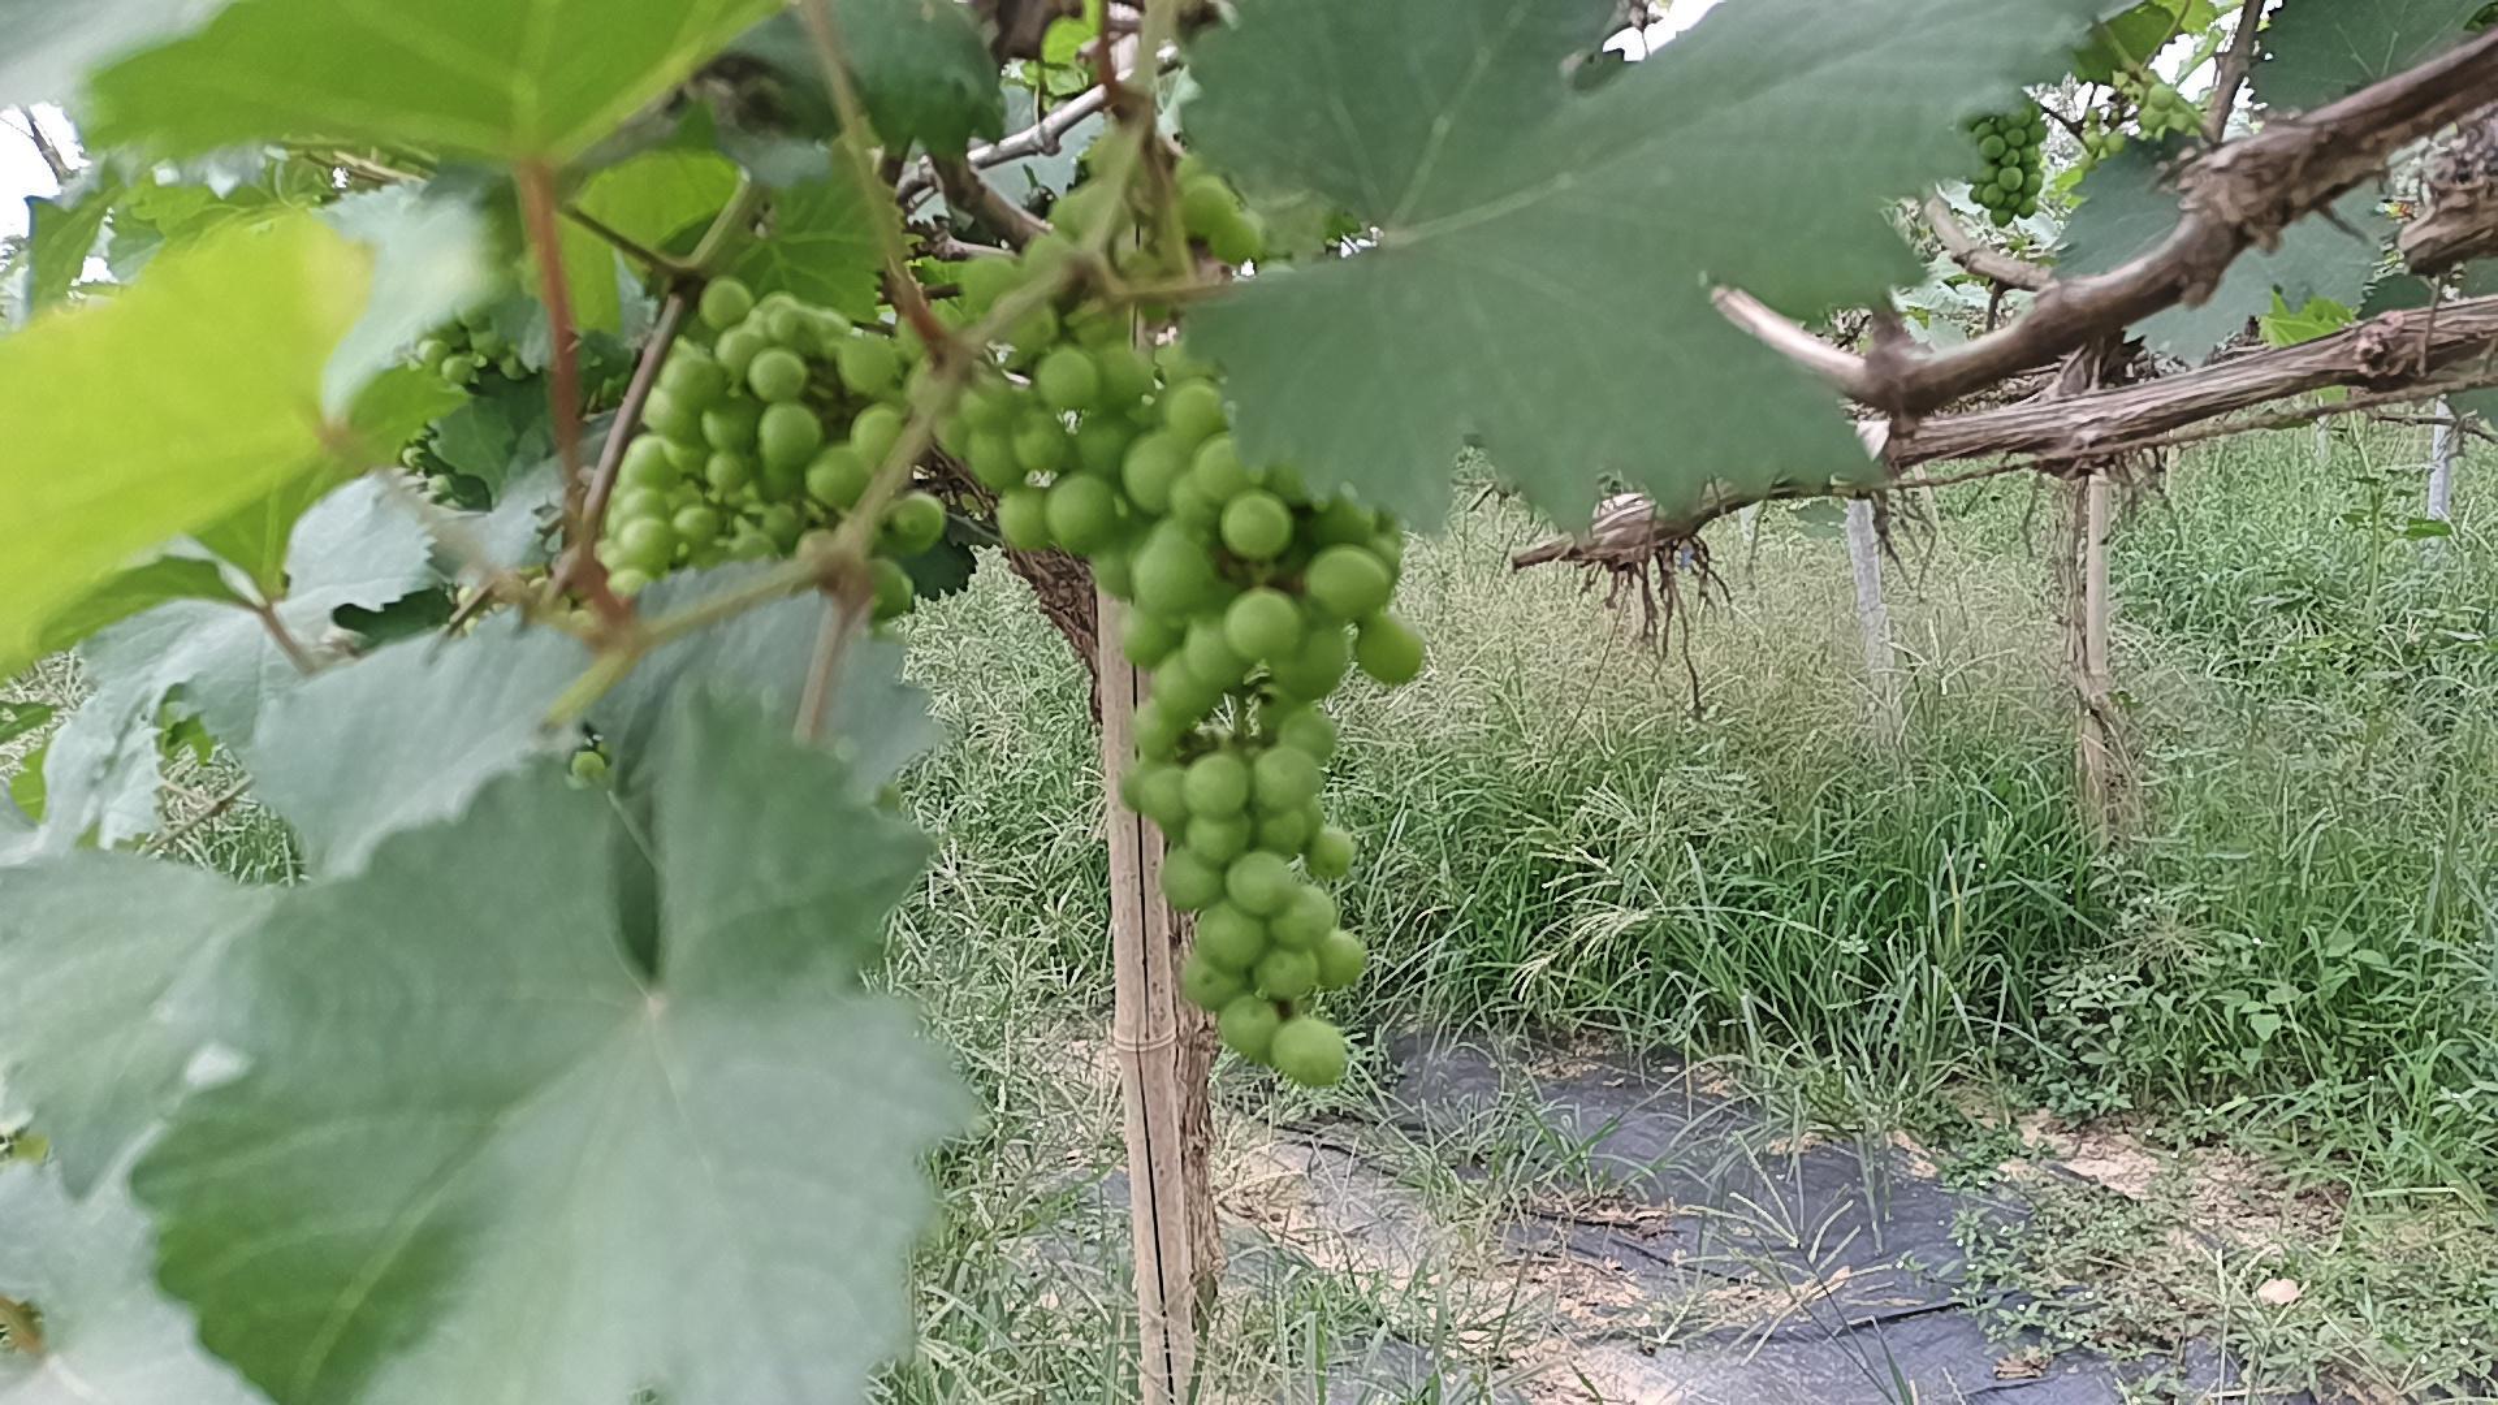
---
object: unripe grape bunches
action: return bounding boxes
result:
[2075,82,2203,167]
[601,278,946,622]
[409,314,532,388]
[1963,95,2049,225]
[899,122,1423,1086]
